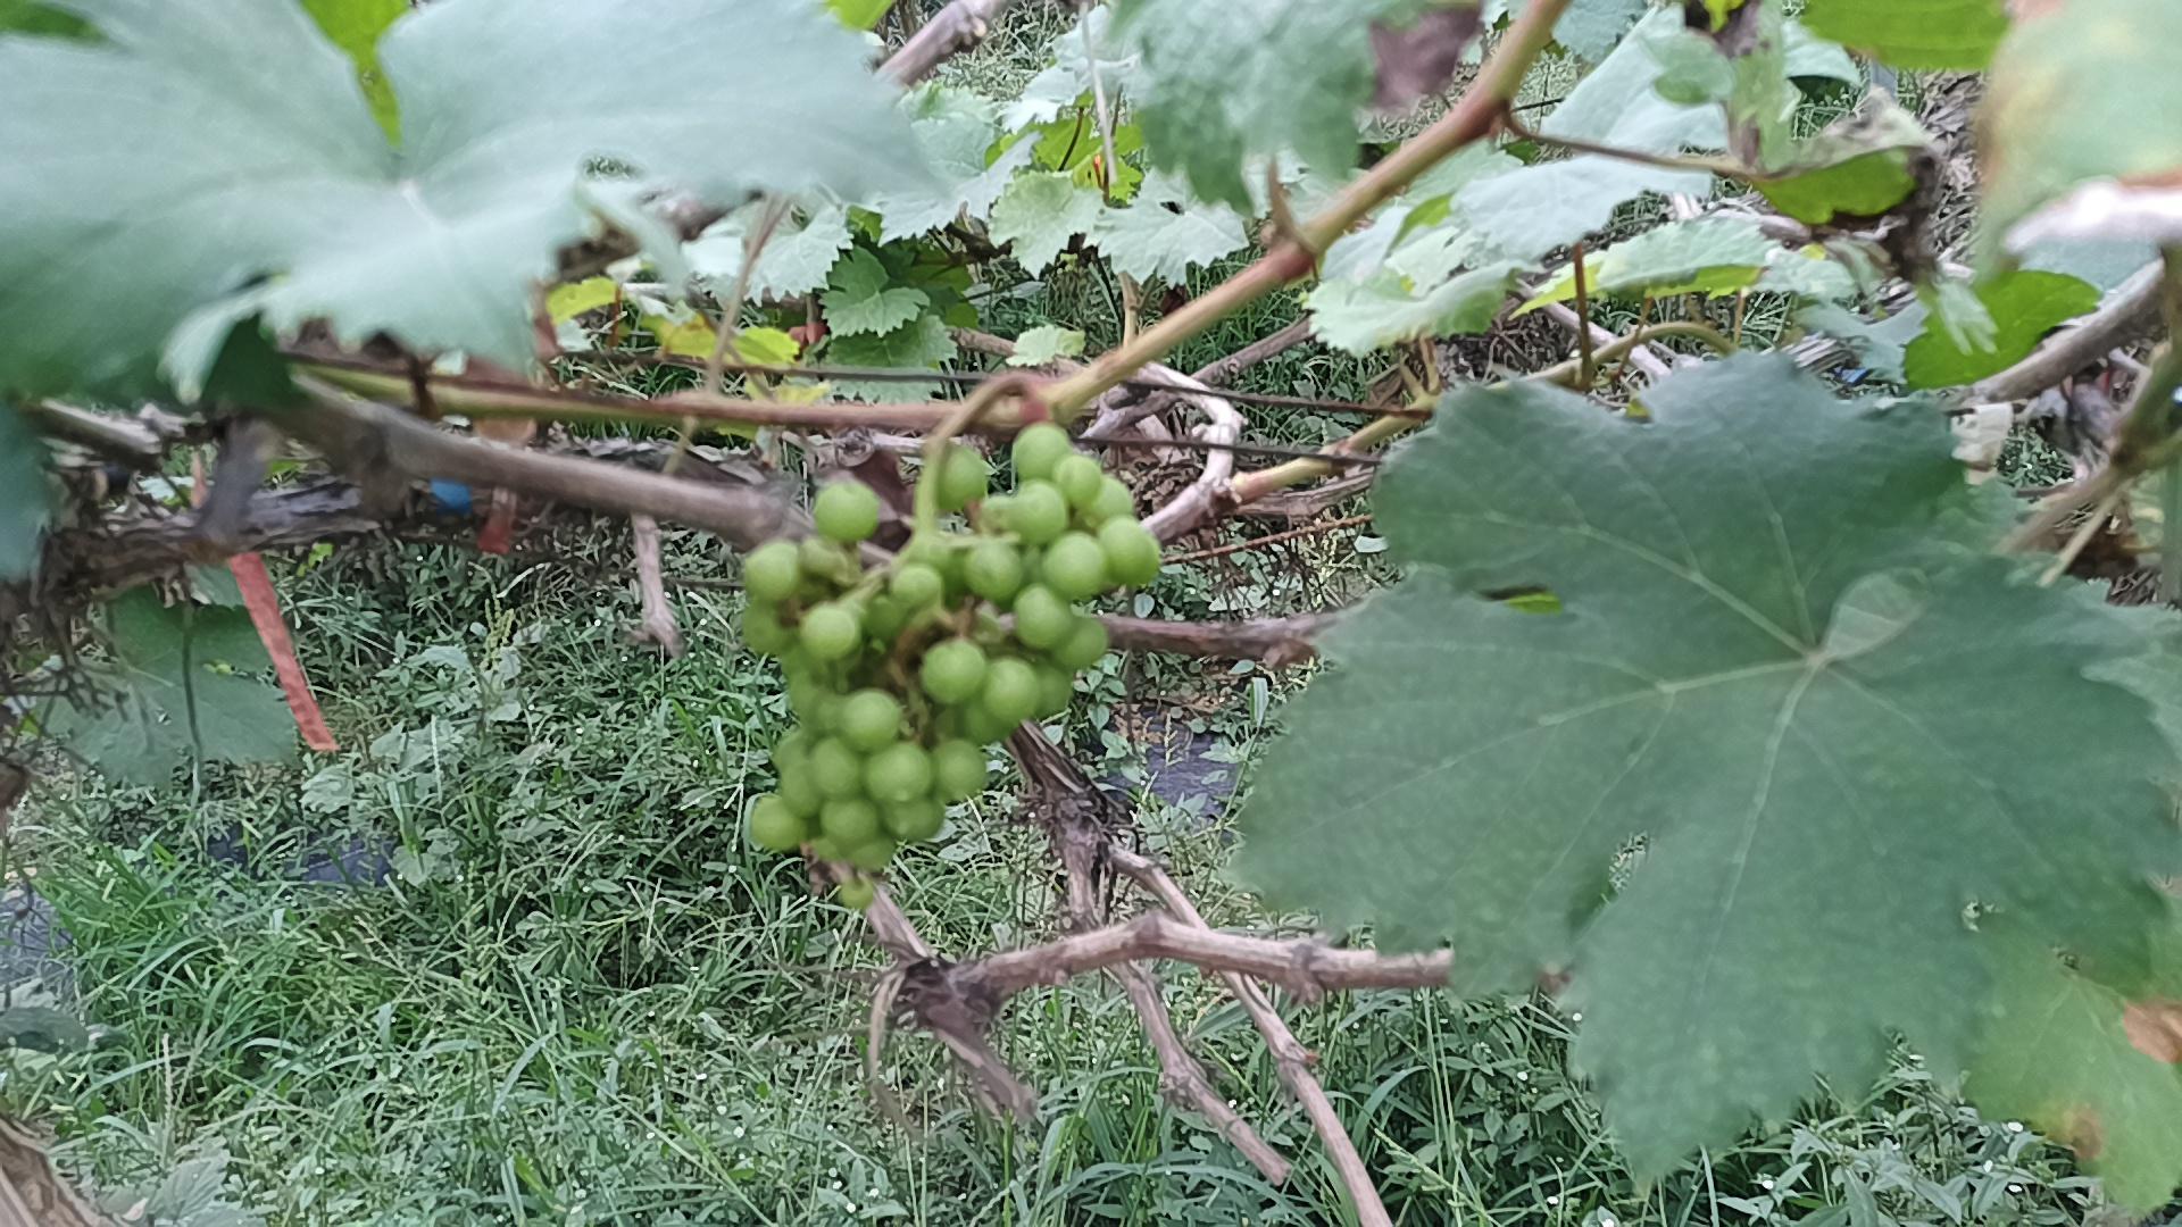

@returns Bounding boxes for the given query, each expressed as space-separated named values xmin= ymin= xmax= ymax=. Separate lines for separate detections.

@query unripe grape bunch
xmin=744 ymin=424 xmax=1160 ymax=908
